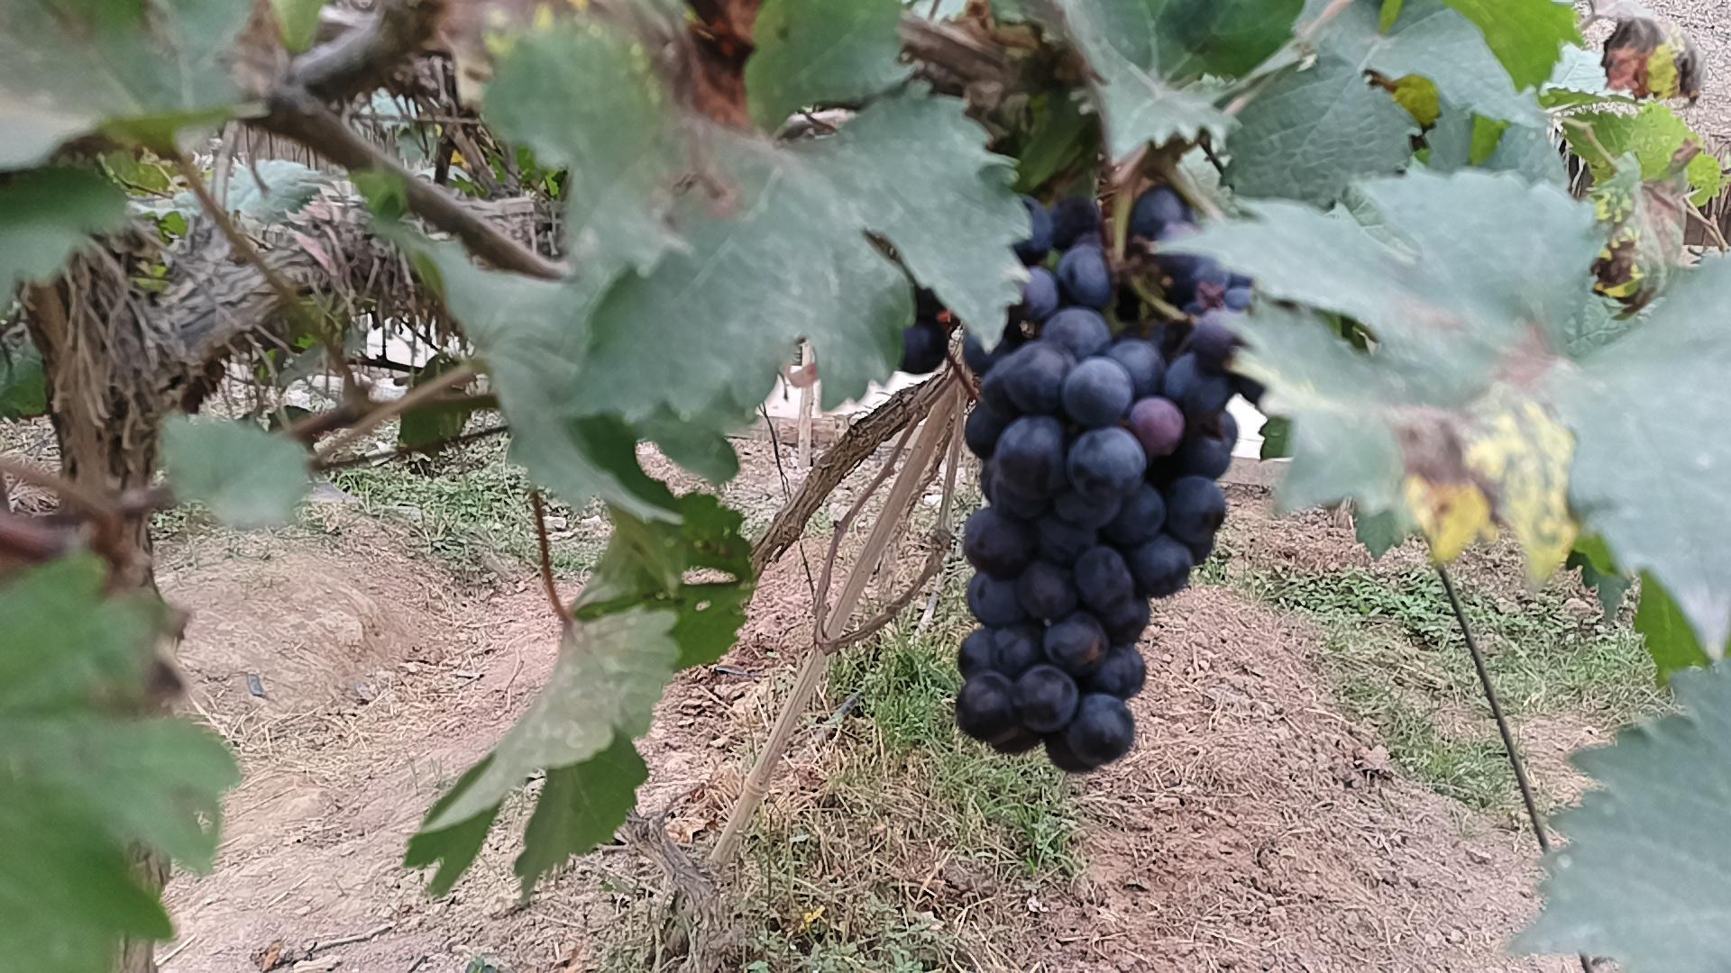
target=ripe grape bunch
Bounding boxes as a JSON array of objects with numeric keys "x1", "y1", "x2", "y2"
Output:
[{"x1": 901, "y1": 184, "x2": 1267, "y2": 772}]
